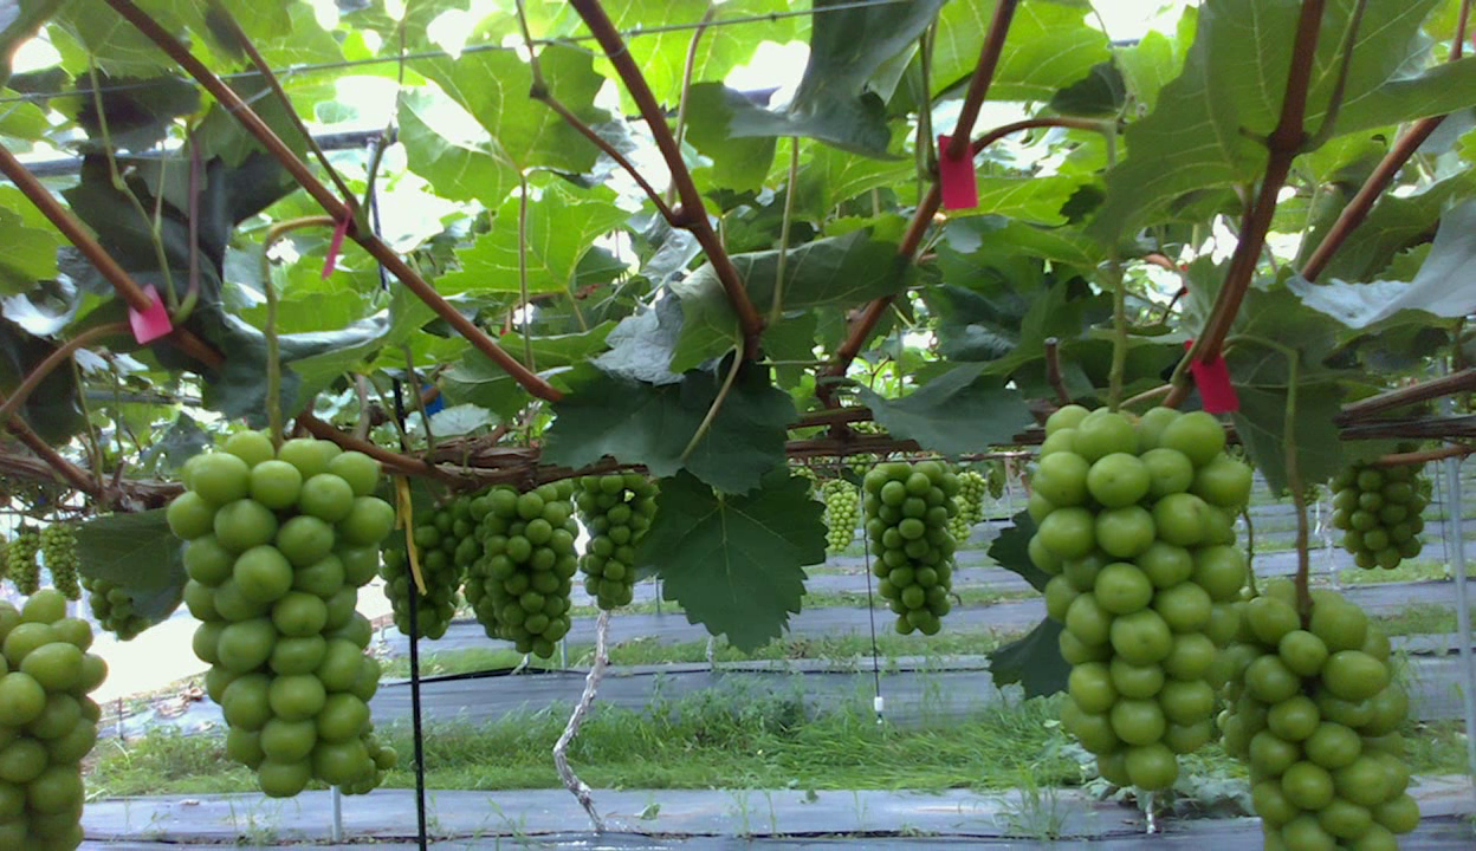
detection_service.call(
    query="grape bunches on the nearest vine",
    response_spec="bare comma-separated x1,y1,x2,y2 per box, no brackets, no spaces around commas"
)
1028,404,1251,791
167,428,394,798
1222,578,1420,850
0,589,106,850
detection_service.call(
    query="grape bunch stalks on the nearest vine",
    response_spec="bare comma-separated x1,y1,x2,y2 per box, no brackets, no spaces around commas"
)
258,216,329,448
971,118,1127,408
1226,333,1313,631
0,324,128,424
